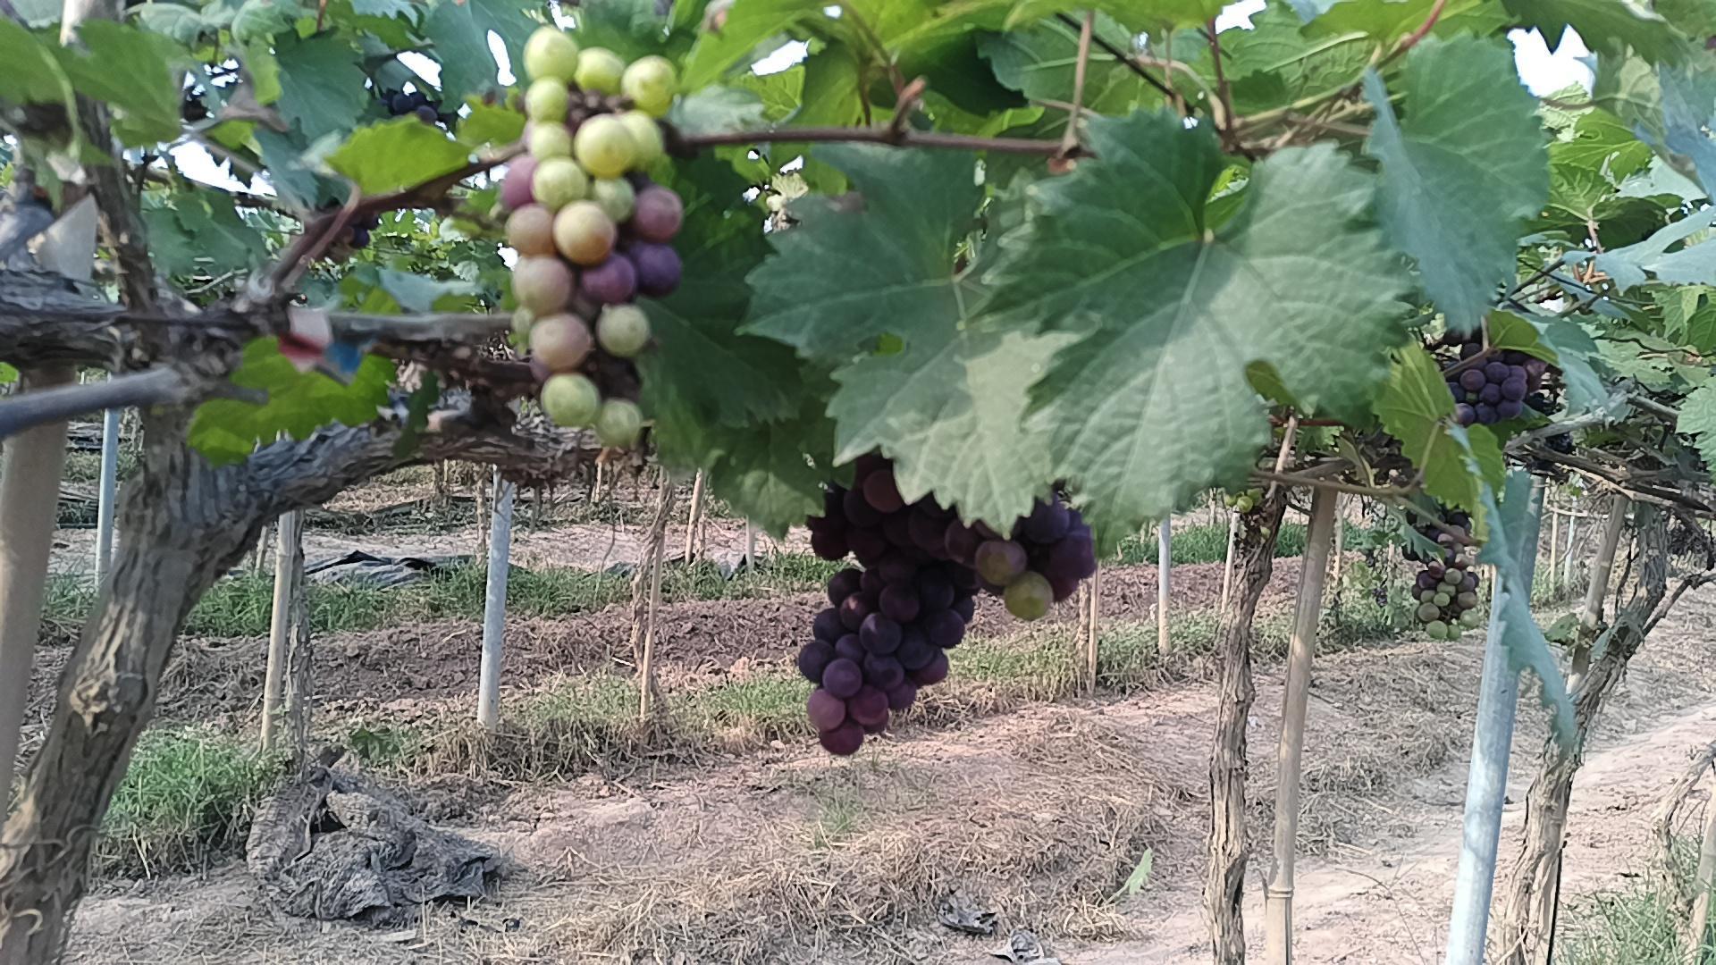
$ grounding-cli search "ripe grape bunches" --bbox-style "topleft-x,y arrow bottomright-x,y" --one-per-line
380,83 -> 458,130
1444,340 -> 1550,426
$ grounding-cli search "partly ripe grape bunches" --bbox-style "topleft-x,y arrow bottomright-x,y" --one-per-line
797,453 -> 1096,753
489,28 -> 683,448
1401,510 -> 1480,638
